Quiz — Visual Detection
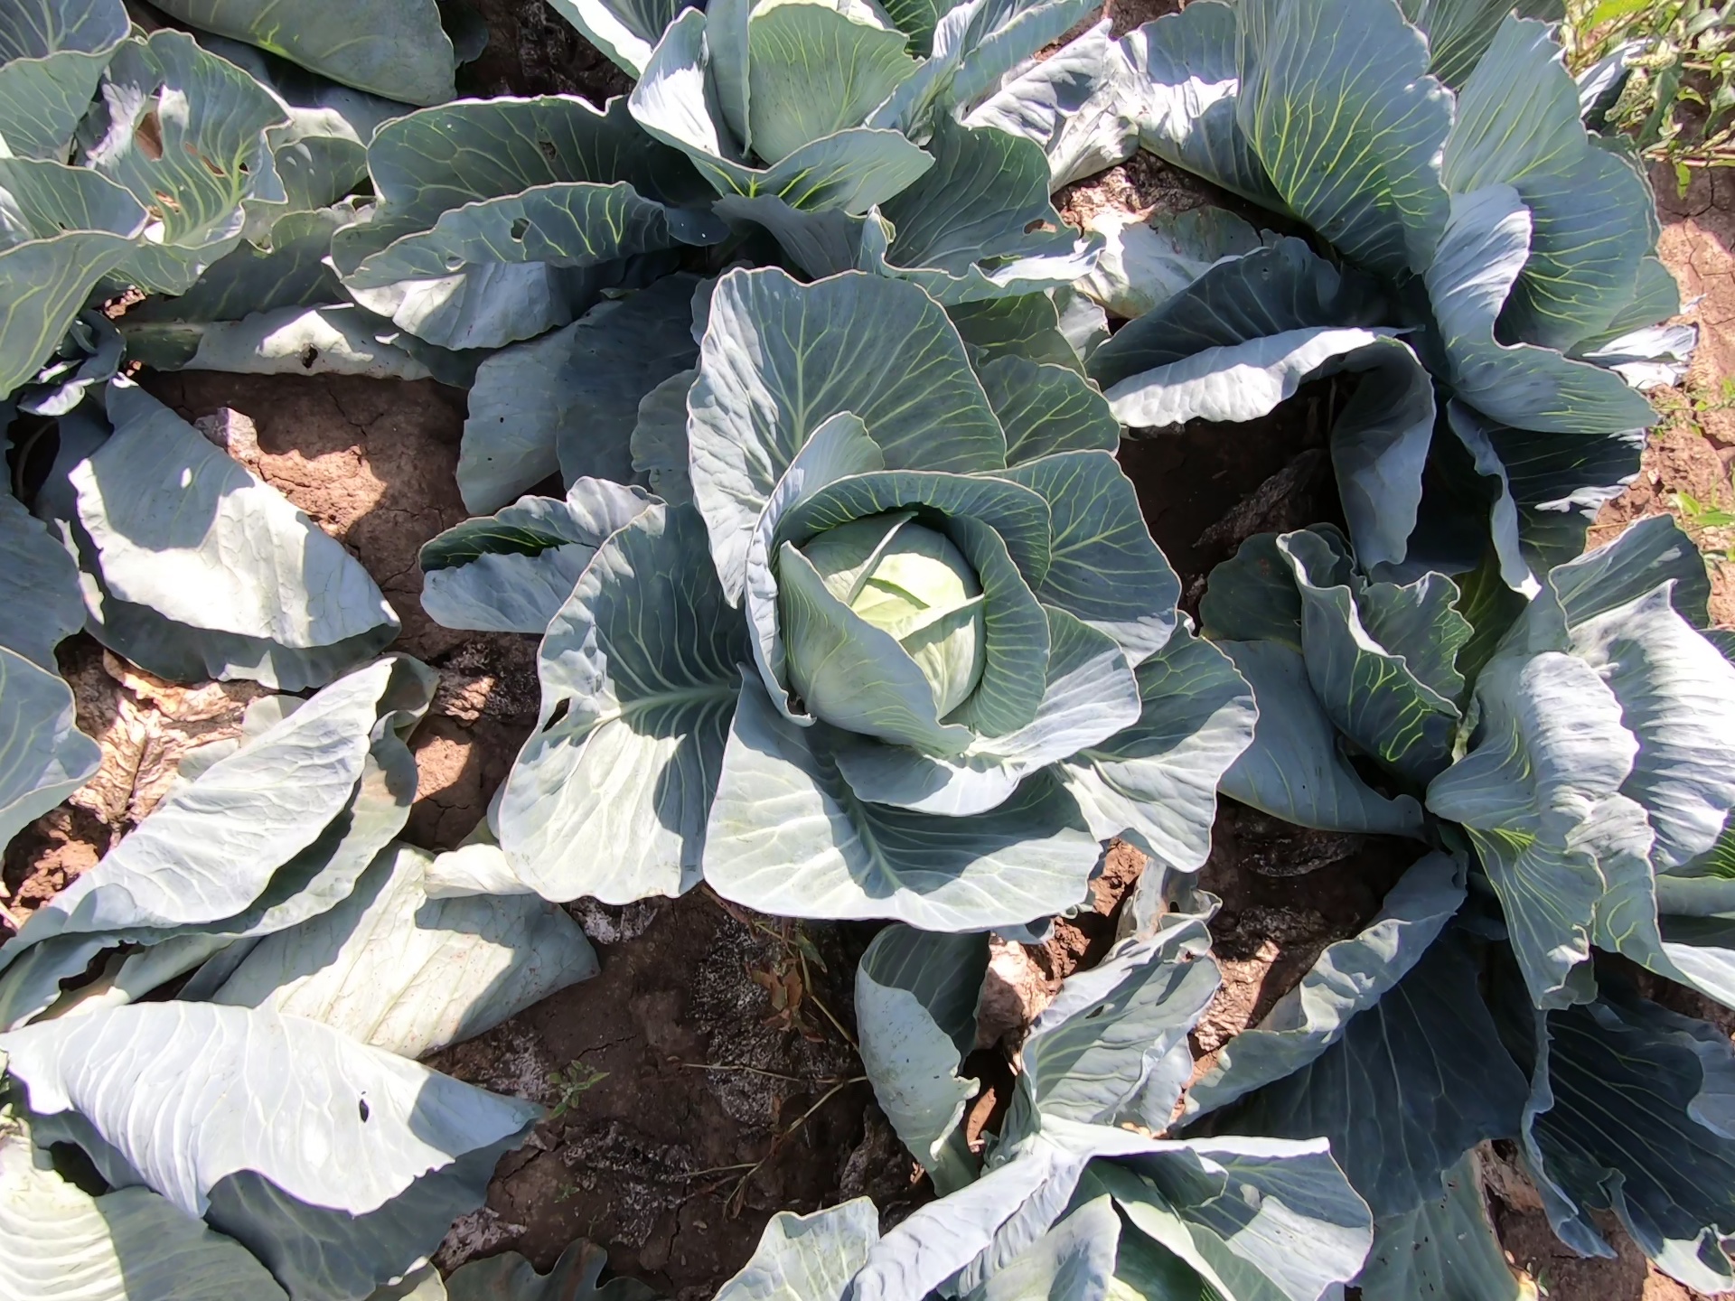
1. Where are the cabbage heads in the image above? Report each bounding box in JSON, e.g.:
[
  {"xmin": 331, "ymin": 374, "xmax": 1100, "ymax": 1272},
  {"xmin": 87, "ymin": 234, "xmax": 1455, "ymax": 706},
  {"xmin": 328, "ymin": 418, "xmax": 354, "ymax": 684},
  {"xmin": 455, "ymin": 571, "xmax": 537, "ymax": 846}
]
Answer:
[
  {"xmin": 971, "ymin": 1162, "xmax": 1191, "ymax": 1299},
  {"xmin": 725, "ymin": 0, "xmax": 908, "ymax": 165},
  {"xmin": 781, "ymin": 519, "xmax": 991, "ymax": 723}
]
